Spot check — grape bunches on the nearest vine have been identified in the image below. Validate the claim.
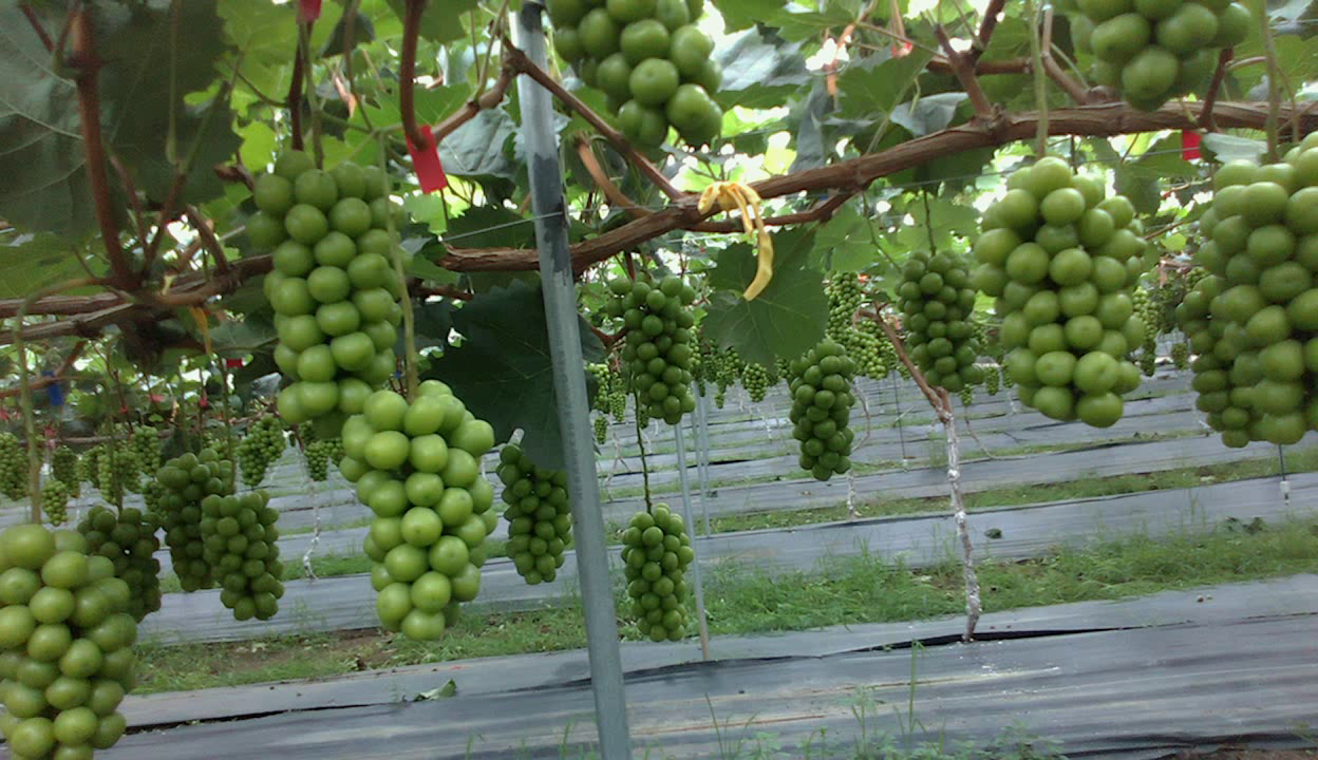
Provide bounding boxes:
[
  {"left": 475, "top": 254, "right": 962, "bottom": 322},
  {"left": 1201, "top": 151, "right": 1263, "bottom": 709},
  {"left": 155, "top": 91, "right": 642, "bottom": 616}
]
[
  {"left": 975, "top": 157, "right": 1148, "bottom": 430},
  {"left": 244, "top": 152, "right": 400, "bottom": 440},
  {"left": 1195, "top": 132, "right": 1317, "bottom": 443},
  {"left": 1061, "top": 1, "right": 1247, "bottom": 114},
  {"left": 338, "top": 379, "right": 501, "bottom": 640},
  {"left": 542, "top": 0, "right": 724, "bottom": 145},
  {"left": 0, "top": 526, "right": 138, "bottom": 759}
]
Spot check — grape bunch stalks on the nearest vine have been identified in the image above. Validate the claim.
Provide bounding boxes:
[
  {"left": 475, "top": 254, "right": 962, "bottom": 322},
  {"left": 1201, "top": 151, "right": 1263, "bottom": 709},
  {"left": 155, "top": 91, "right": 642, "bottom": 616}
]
[
  {"left": 377, "top": 121, "right": 419, "bottom": 401},
  {"left": 1256, "top": 1, "right": 1279, "bottom": 158},
  {"left": 1023, "top": 1, "right": 1050, "bottom": 156},
  {"left": 293, "top": 5, "right": 324, "bottom": 168},
  {"left": 13, "top": 279, "right": 91, "bottom": 521}
]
